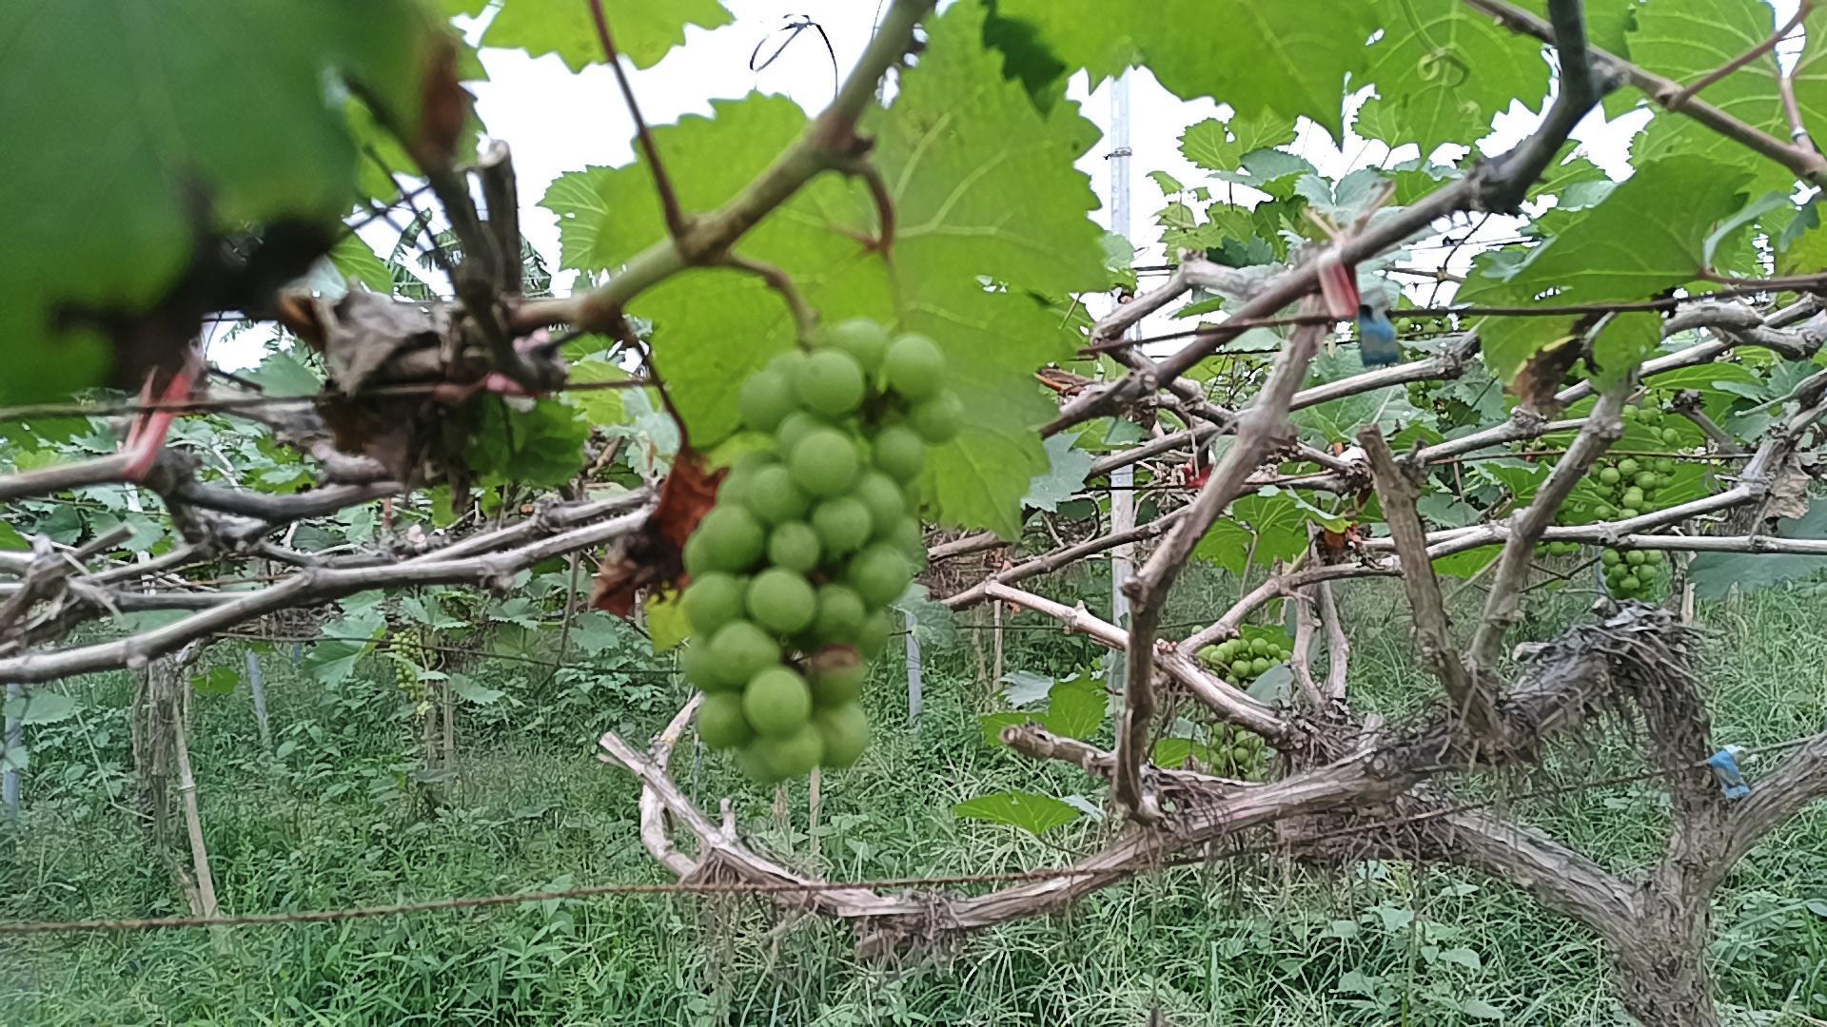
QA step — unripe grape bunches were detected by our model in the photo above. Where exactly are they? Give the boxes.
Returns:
[1189,626,1297,783]
[1586,394,1681,602]
[682,320,961,782]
